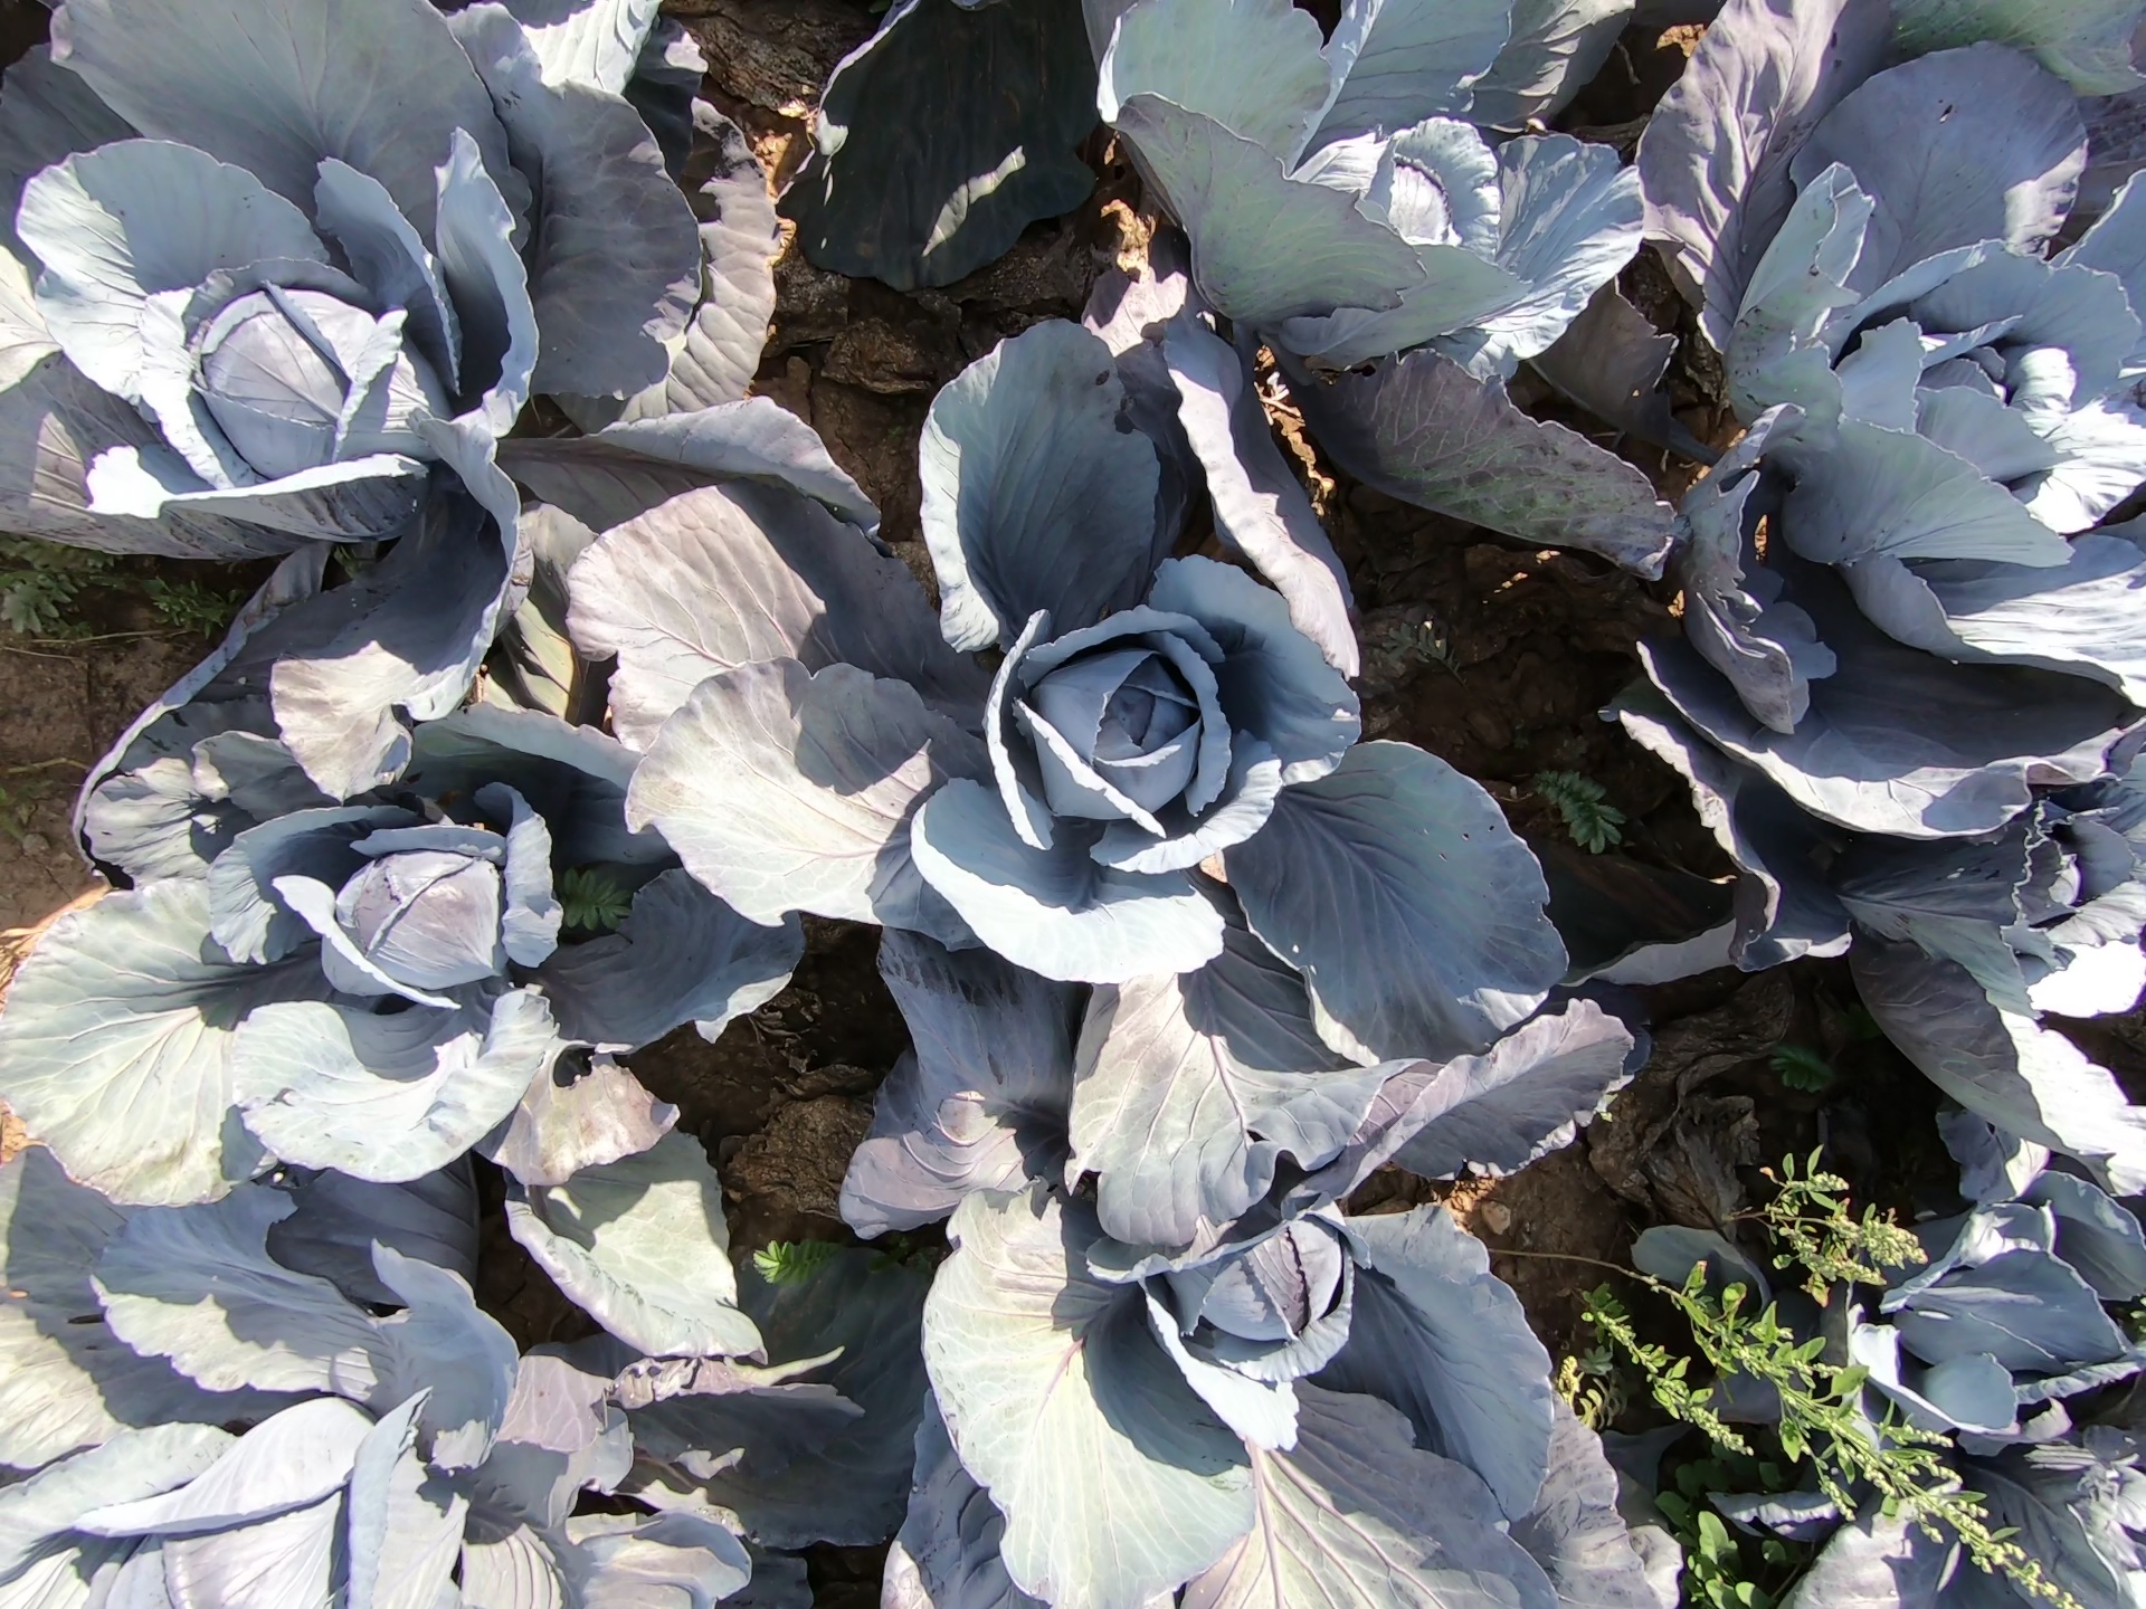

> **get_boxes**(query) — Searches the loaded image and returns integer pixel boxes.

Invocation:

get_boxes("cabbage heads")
[1836,355,2013,486]
[92,1439,453,1603]
[1167,1174,1346,1352]
[1038,651,1197,816]
[1294,155,1455,322]
[1928,828,2085,931]
[325,839,510,980]
[194,276,433,480]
